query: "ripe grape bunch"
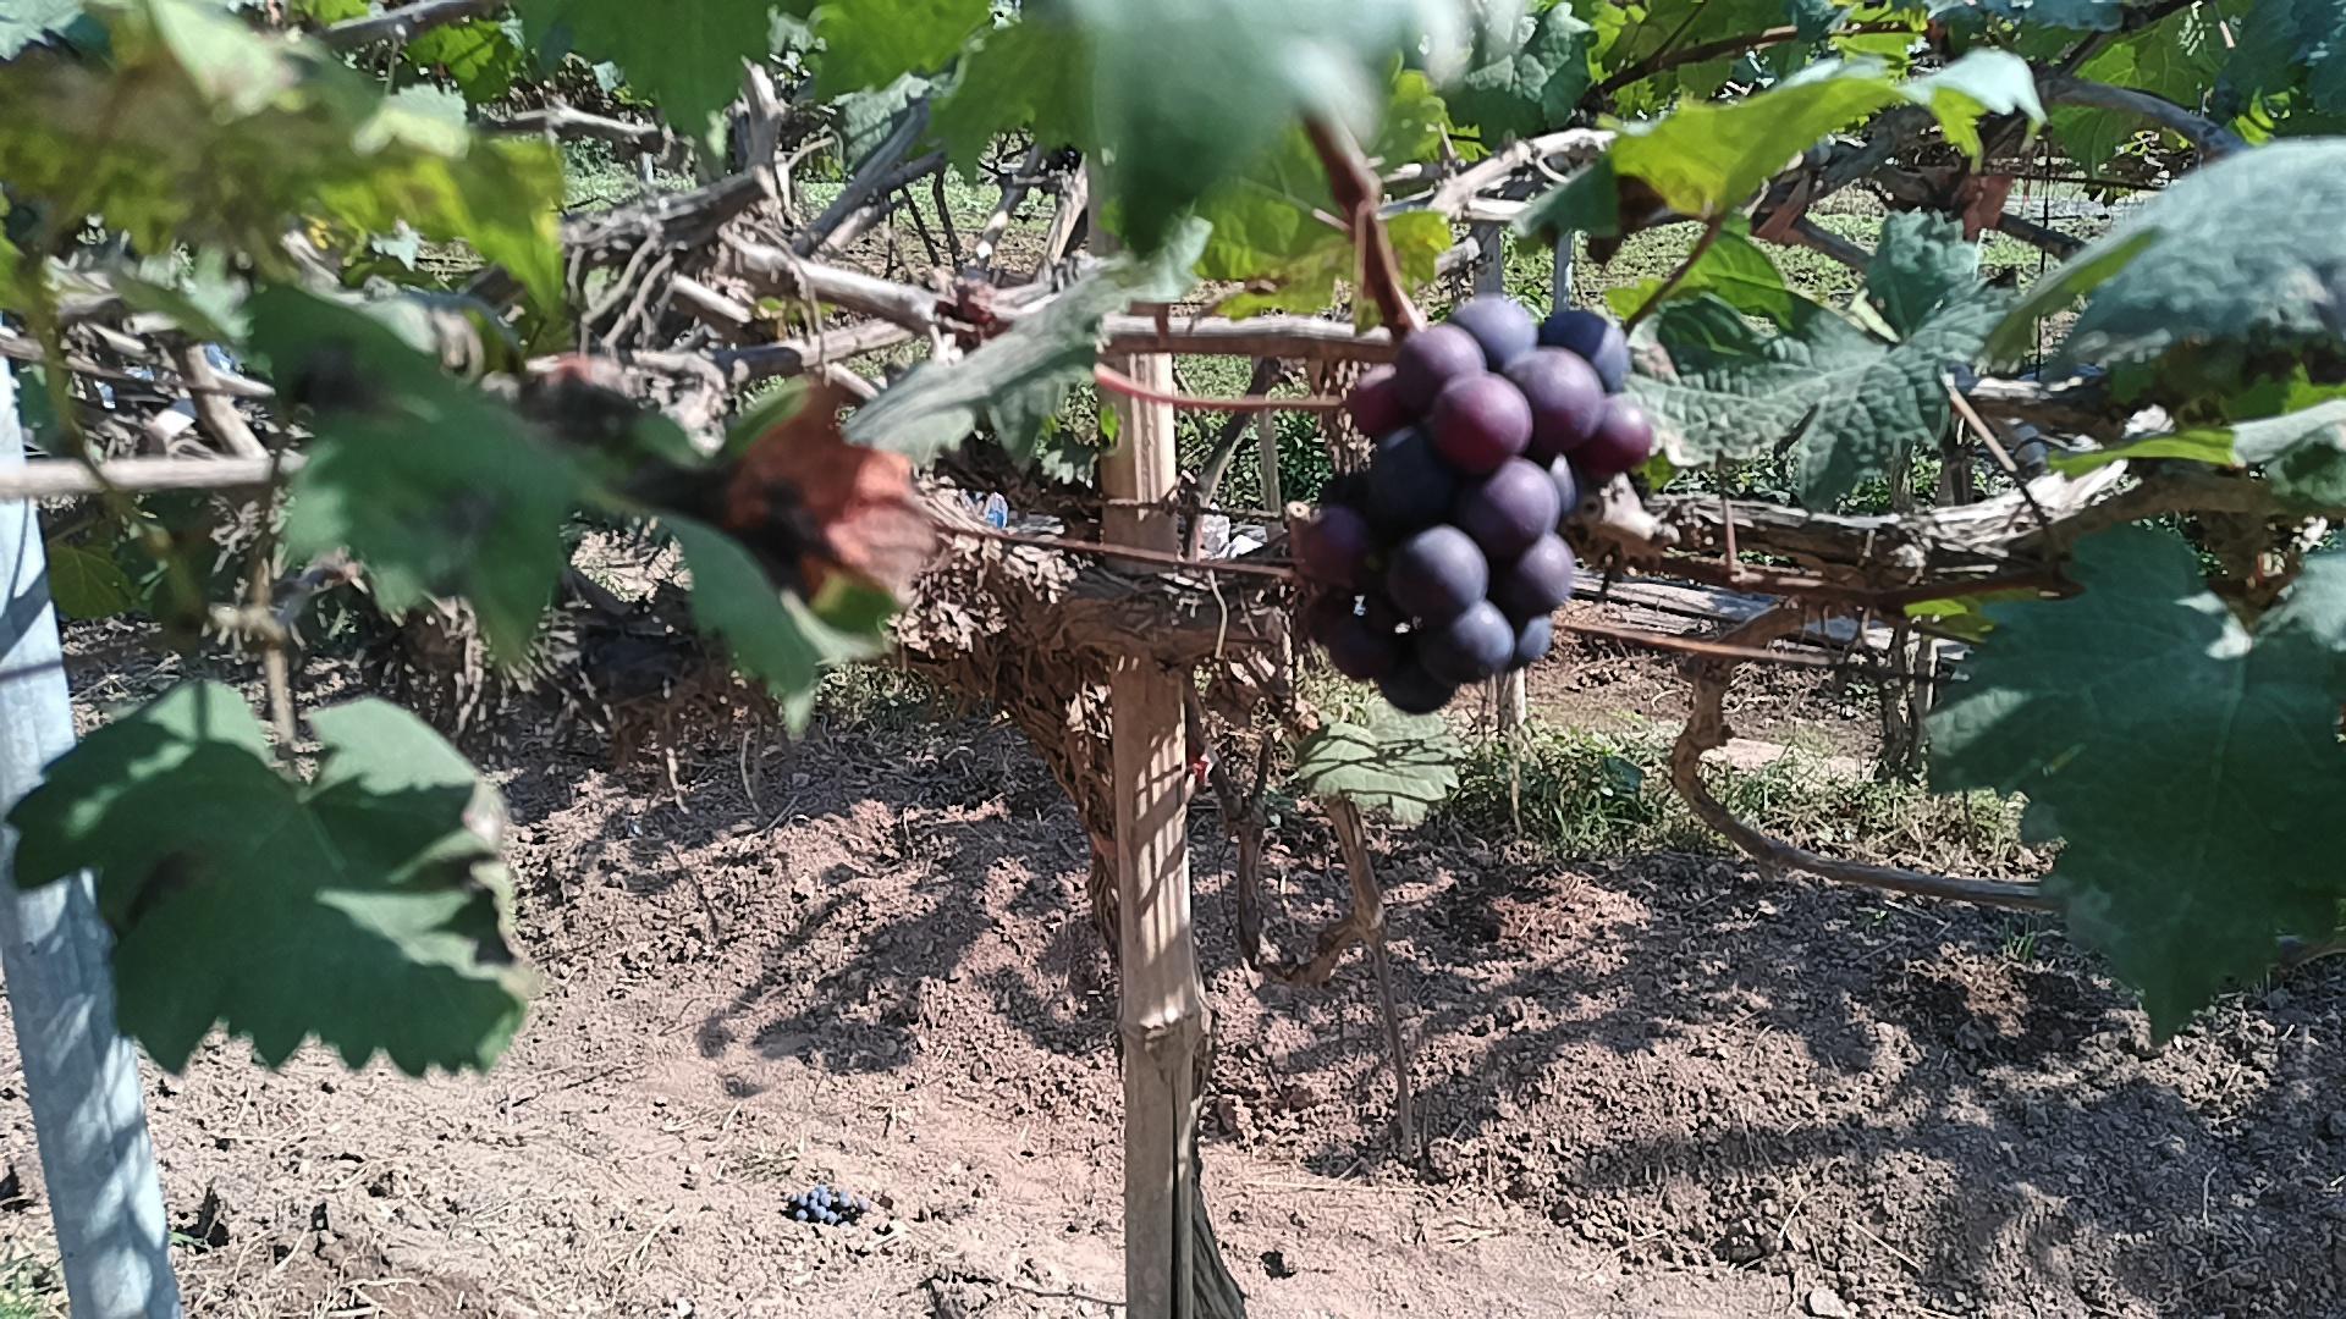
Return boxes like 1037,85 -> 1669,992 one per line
1296,294 -> 1654,712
